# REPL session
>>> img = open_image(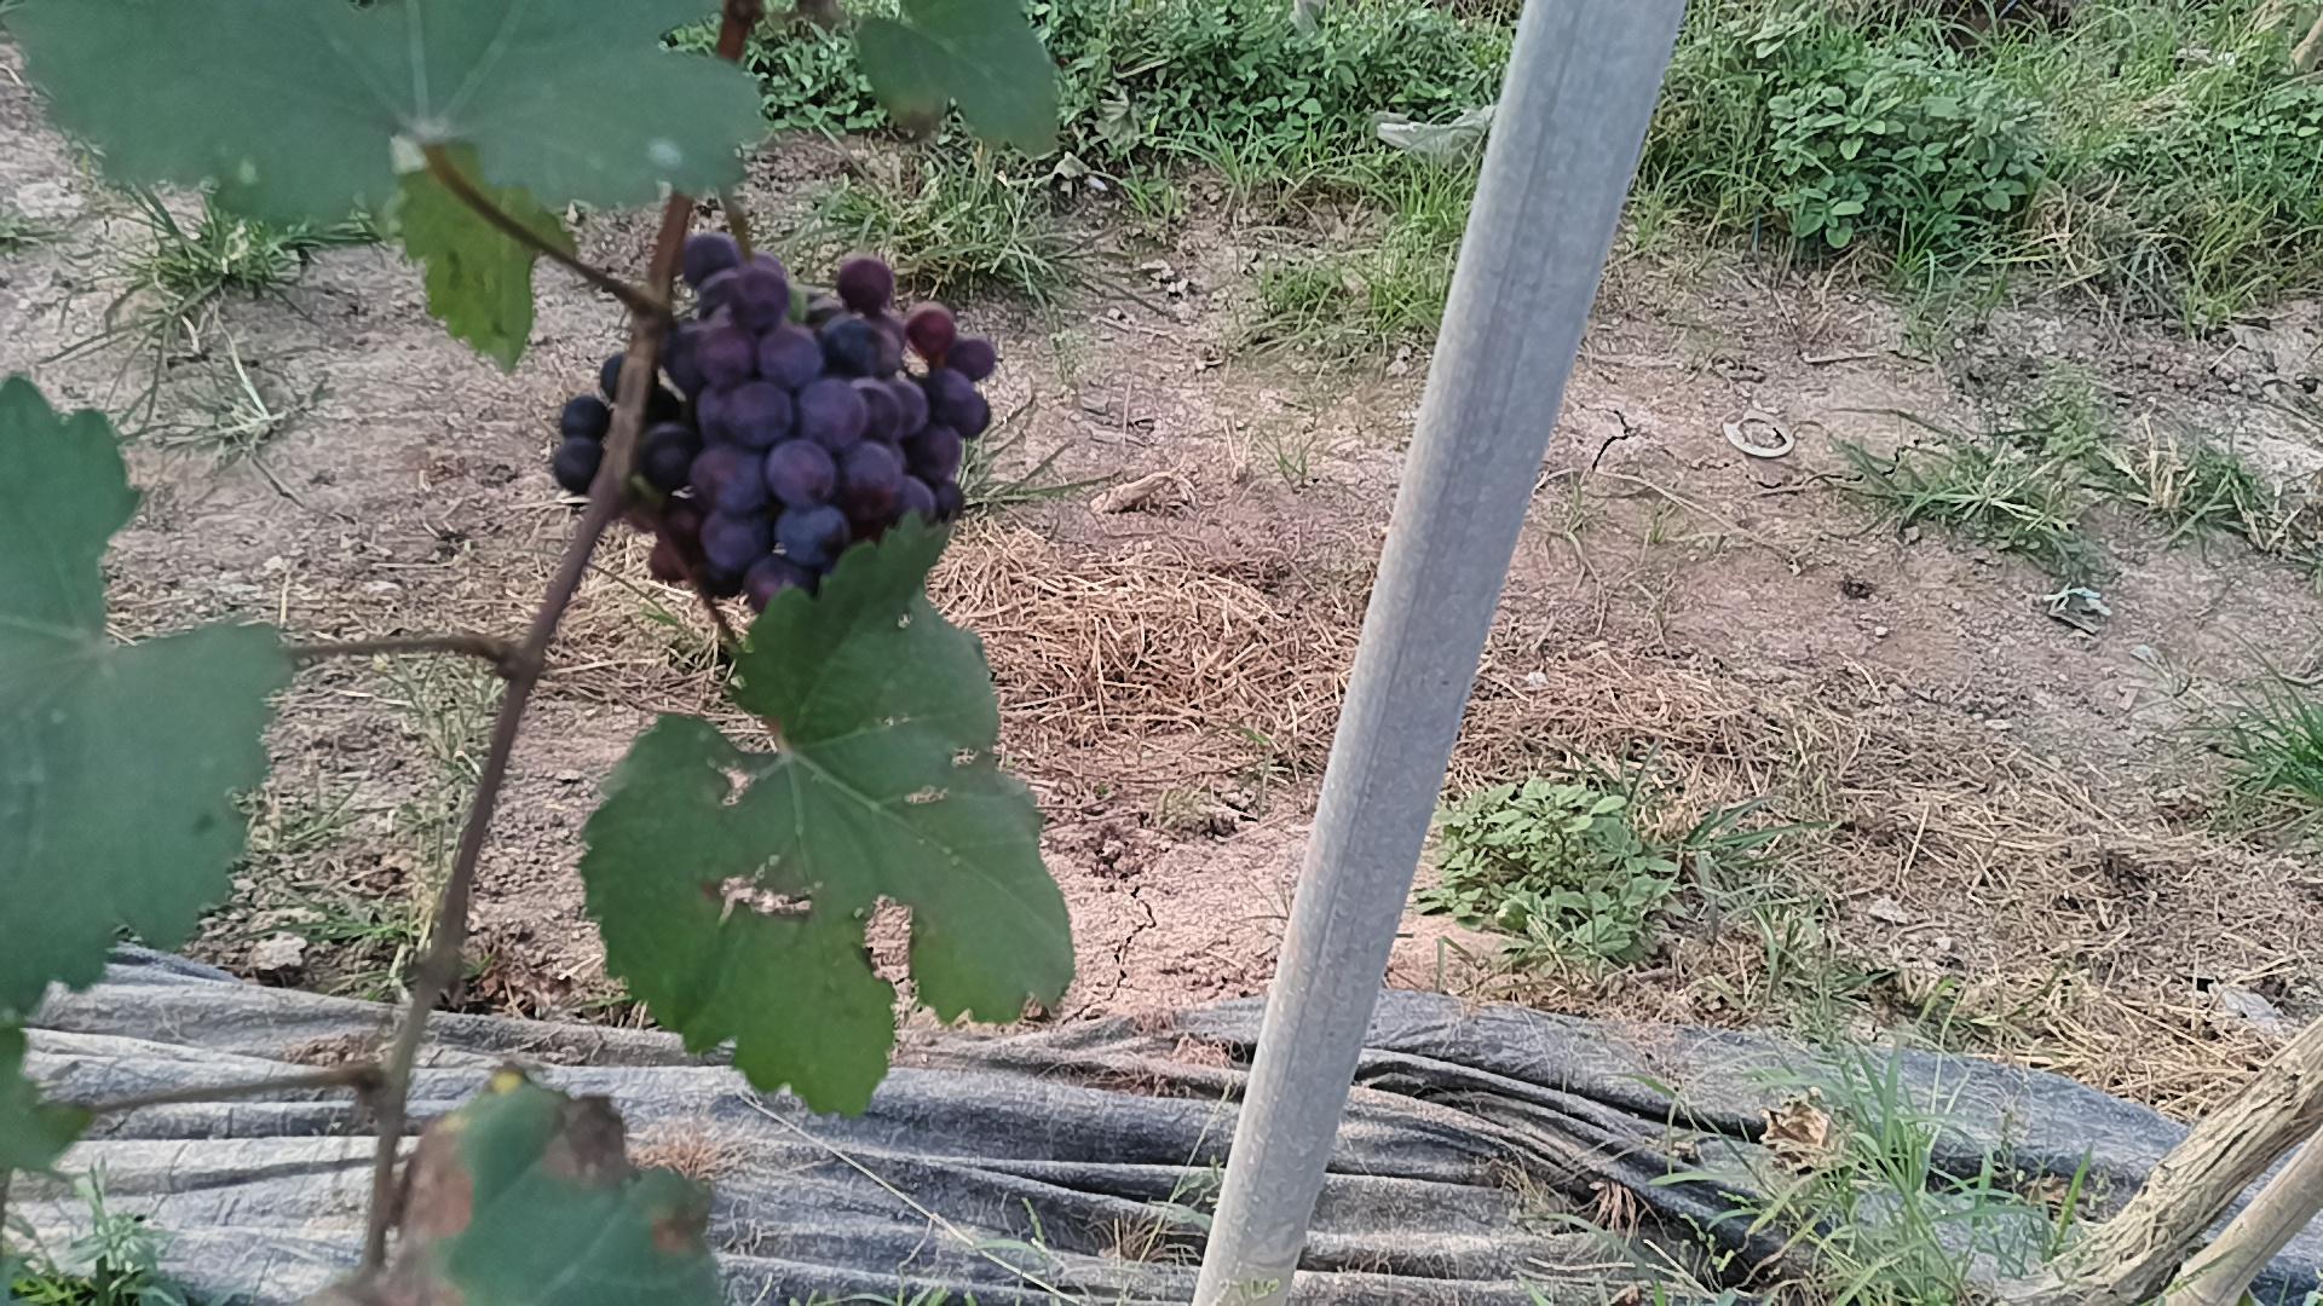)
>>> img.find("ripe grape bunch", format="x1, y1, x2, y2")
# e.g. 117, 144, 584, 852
553, 233, 998, 611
